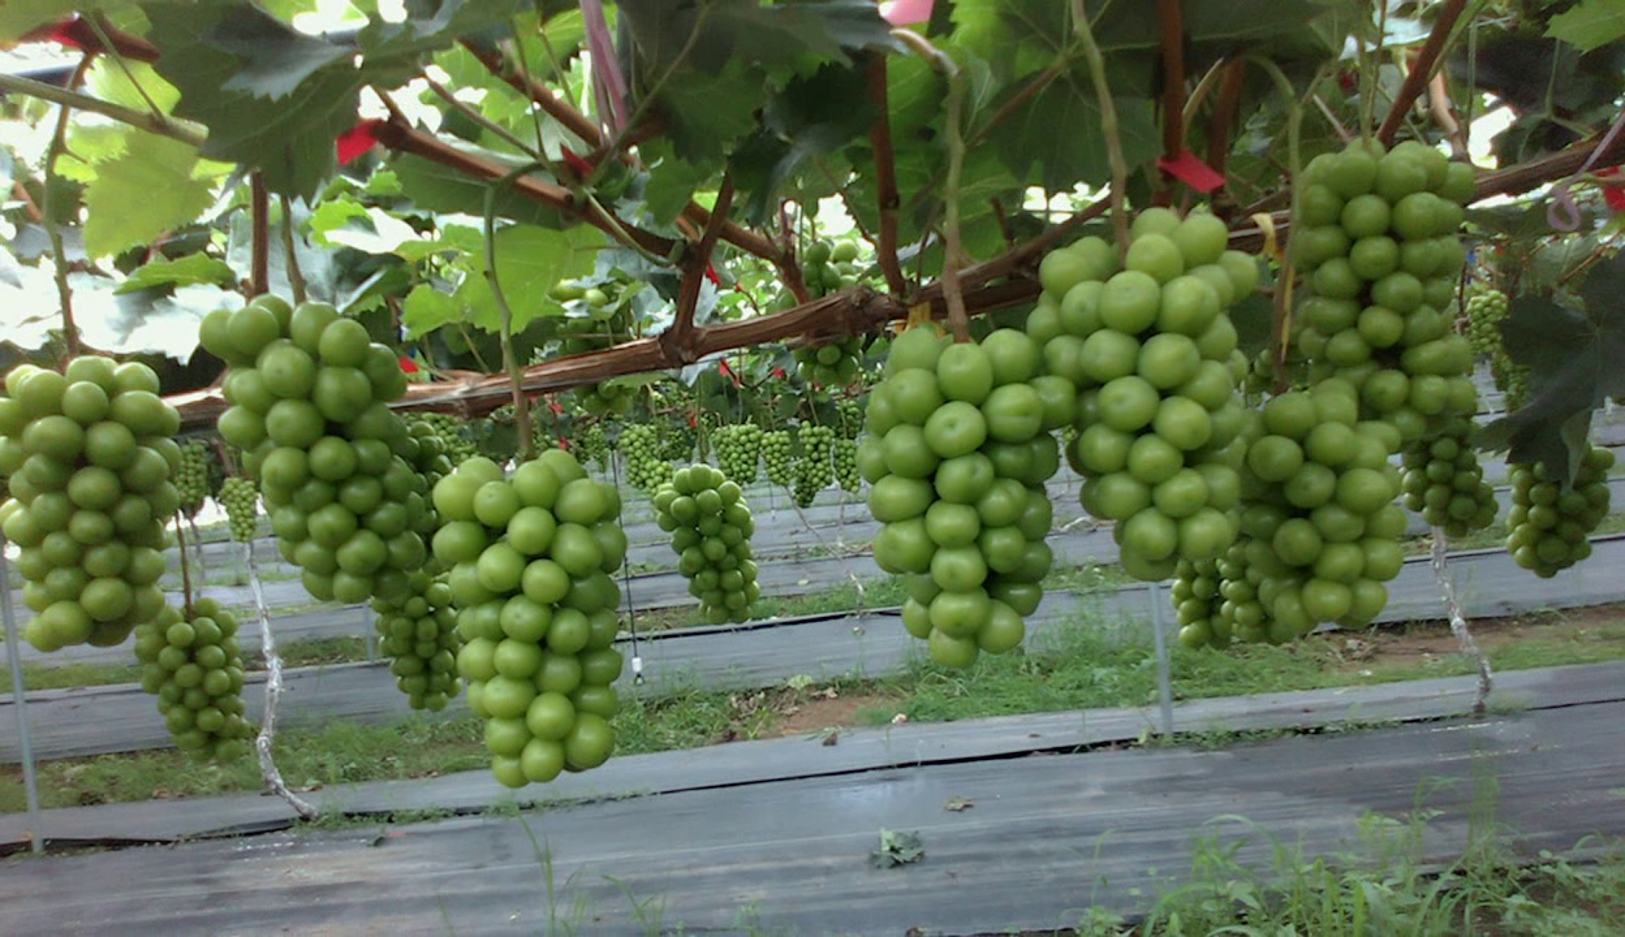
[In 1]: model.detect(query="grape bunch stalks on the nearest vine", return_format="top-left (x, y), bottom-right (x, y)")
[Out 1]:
top-left (1069, 1), bottom-right (1130, 263)
top-left (280, 193), bottom-right (306, 308)
top-left (1181, 49), bottom-right (1302, 396)
top-left (44, 51), bottom-right (100, 363)
top-left (482, 161), bottom-right (547, 463)
top-left (883, 26), bottom-right (969, 346)
top-left (1358, 5), bottom-right (1368, 144)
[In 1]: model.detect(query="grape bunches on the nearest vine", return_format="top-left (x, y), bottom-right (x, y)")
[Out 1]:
top-left (199, 294), bottom-right (427, 606)
top-left (1290, 139), bottom-right (1479, 440)
top-left (430, 452), bottom-right (628, 786)
top-left (853, 325), bottom-right (1076, 672)
top-left (1, 354), bottom-right (181, 651)
top-left (1234, 380), bottom-right (1410, 638)
top-left (1026, 210), bottom-right (1258, 583)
